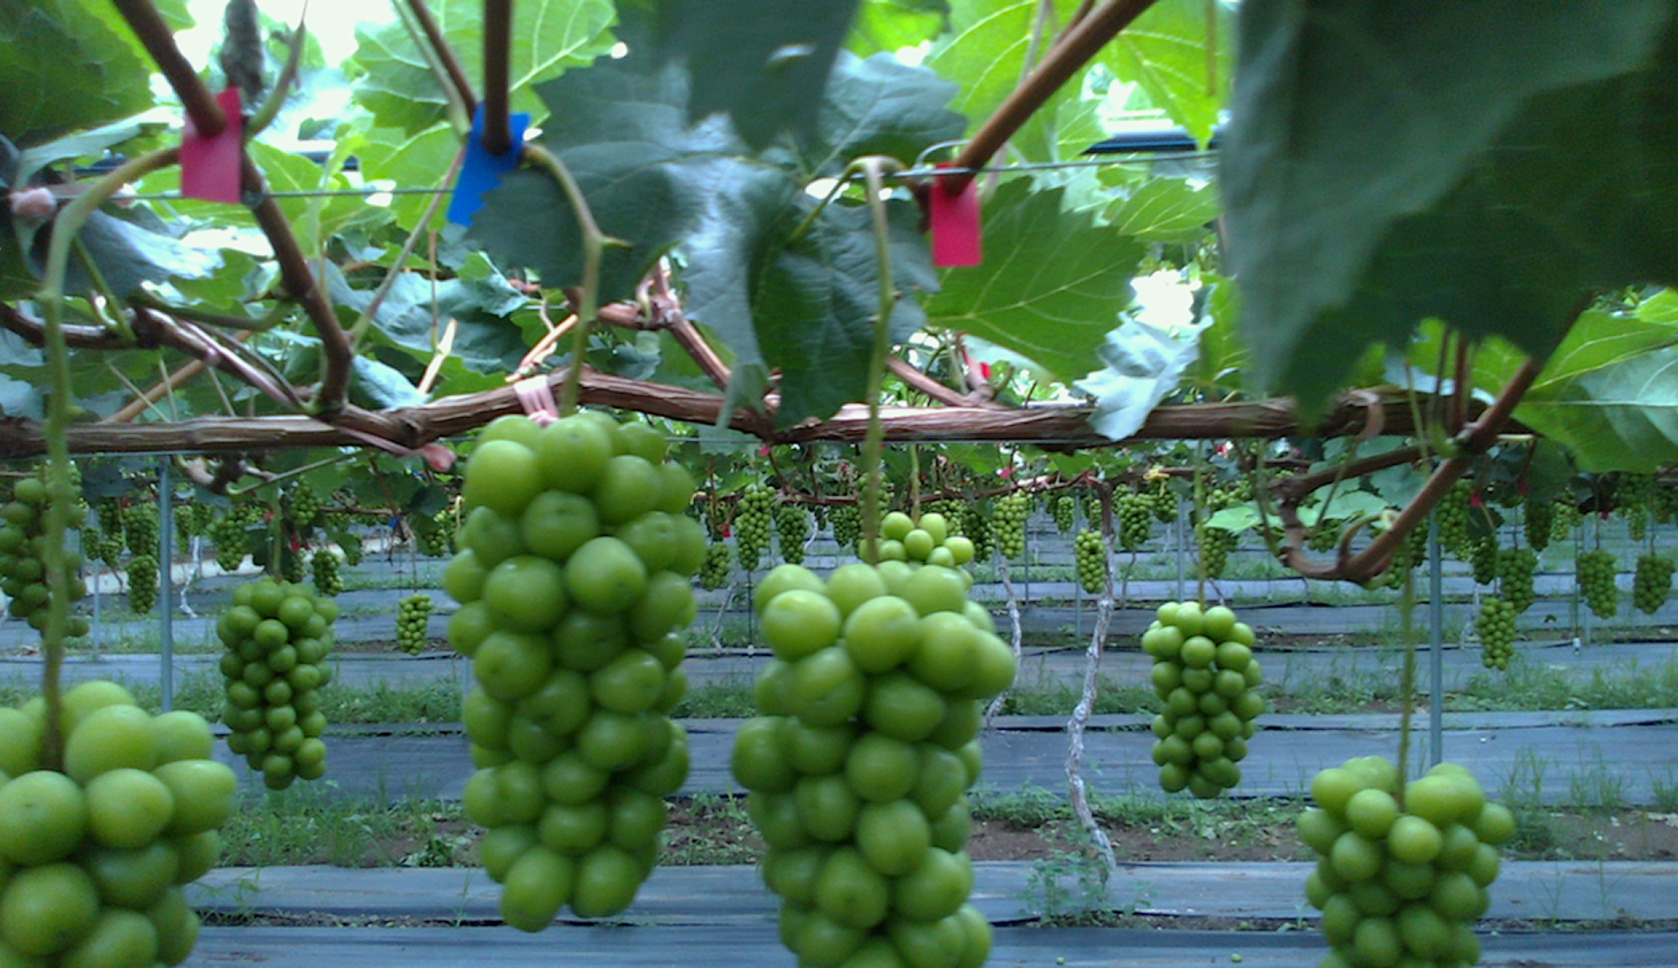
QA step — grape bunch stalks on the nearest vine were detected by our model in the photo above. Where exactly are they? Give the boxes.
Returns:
[1335,511,1416,809]
[865,160,916,565]
[519,147,602,418]
[38,147,183,772]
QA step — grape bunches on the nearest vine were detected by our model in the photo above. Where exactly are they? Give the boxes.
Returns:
[444,413,706,934]
[0,679,238,967]
[1299,756,1515,967]
[729,561,1018,967]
